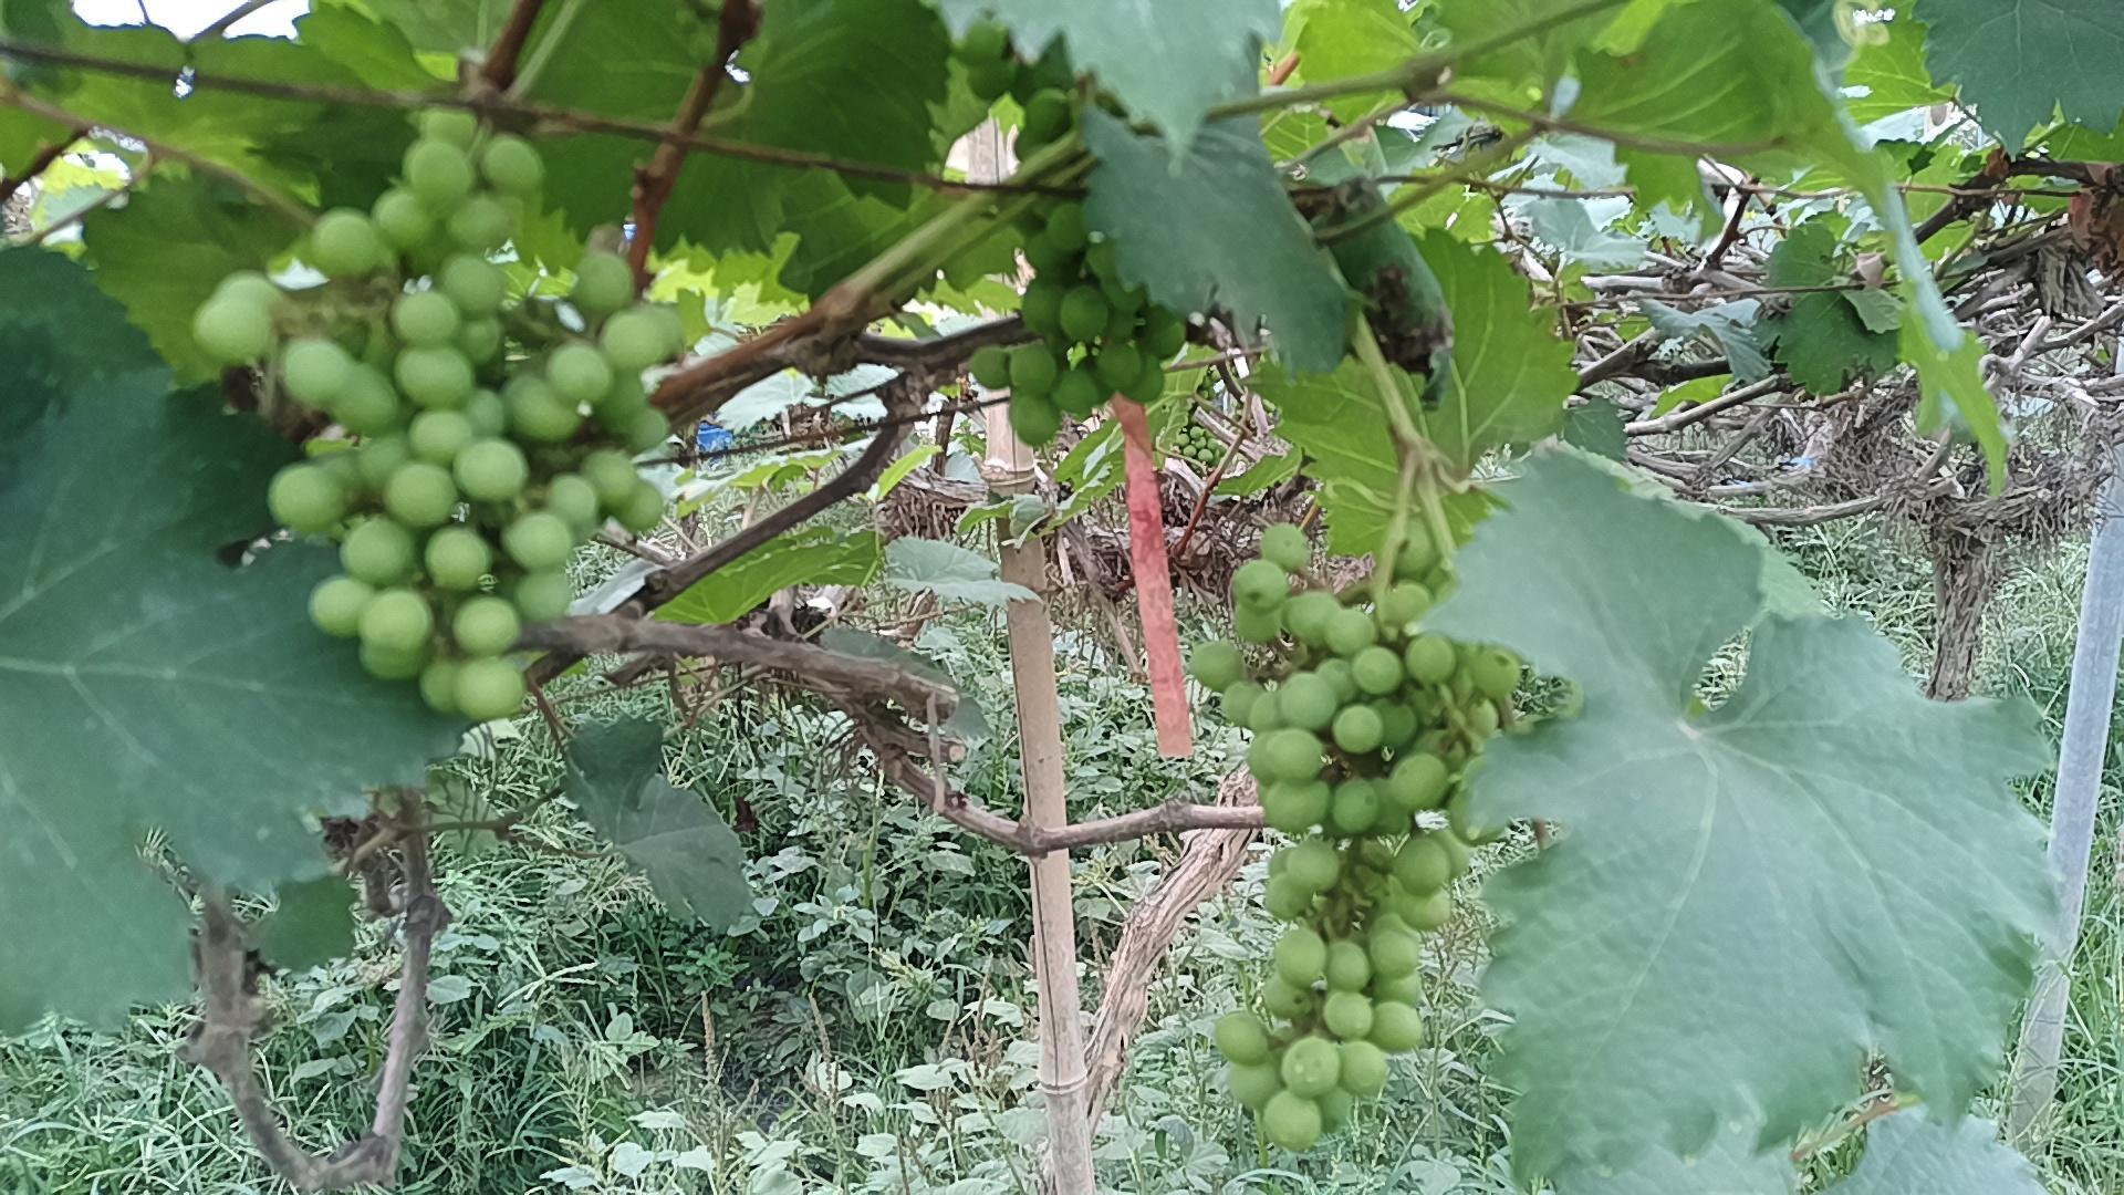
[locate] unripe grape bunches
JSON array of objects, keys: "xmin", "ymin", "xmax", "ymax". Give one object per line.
[
  {"xmin": 1197, "ymin": 524, "xmax": 1519, "ymax": 1147},
  {"xmin": 195, "ymin": 112, "xmax": 680, "ymax": 720},
  {"xmin": 1176, "ymin": 370, "xmax": 1225, "ymax": 480},
  {"xmin": 955, "ymin": 17, "xmax": 1186, "ymax": 444}
]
